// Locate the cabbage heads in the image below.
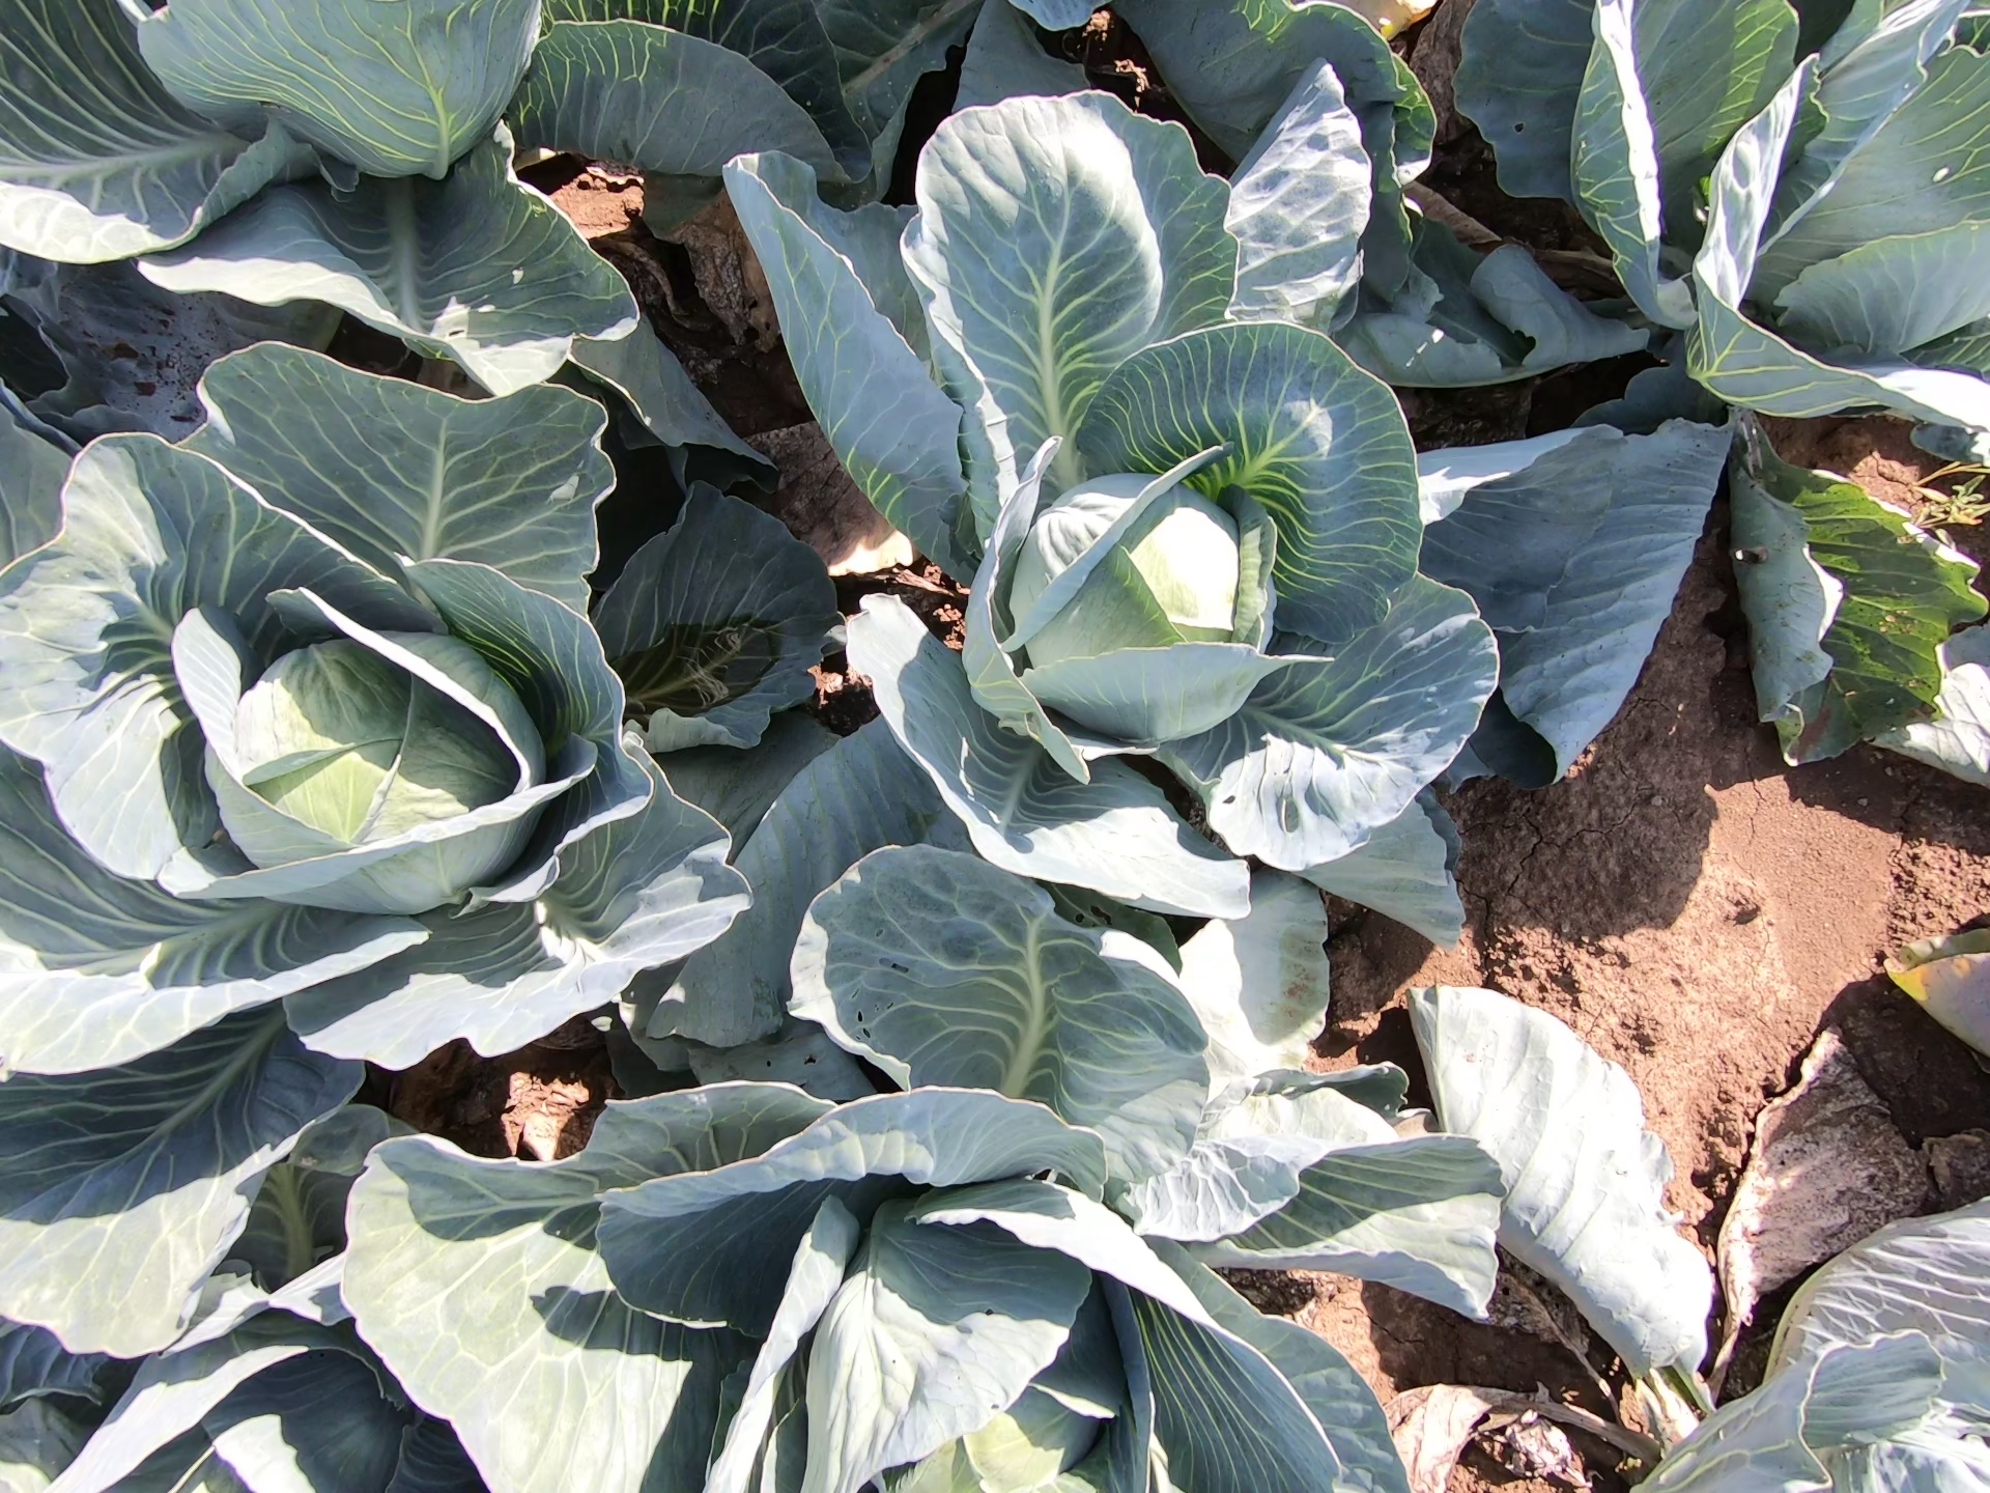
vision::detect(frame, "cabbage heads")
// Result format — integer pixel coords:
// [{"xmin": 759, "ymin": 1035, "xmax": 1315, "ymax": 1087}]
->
[
  {"xmin": 212, "ymin": 633, "xmax": 538, "ymax": 908},
  {"xmin": 1020, "ymin": 479, "xmax": 1280, "ymax": 735},
  {"xmin": 861, "ymin": 1240, "xmax": 1115, "ymax": 1491},
  {"xmin": 107, "ymin": 1346, "xmax": 410, "ymax": 1490}
]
